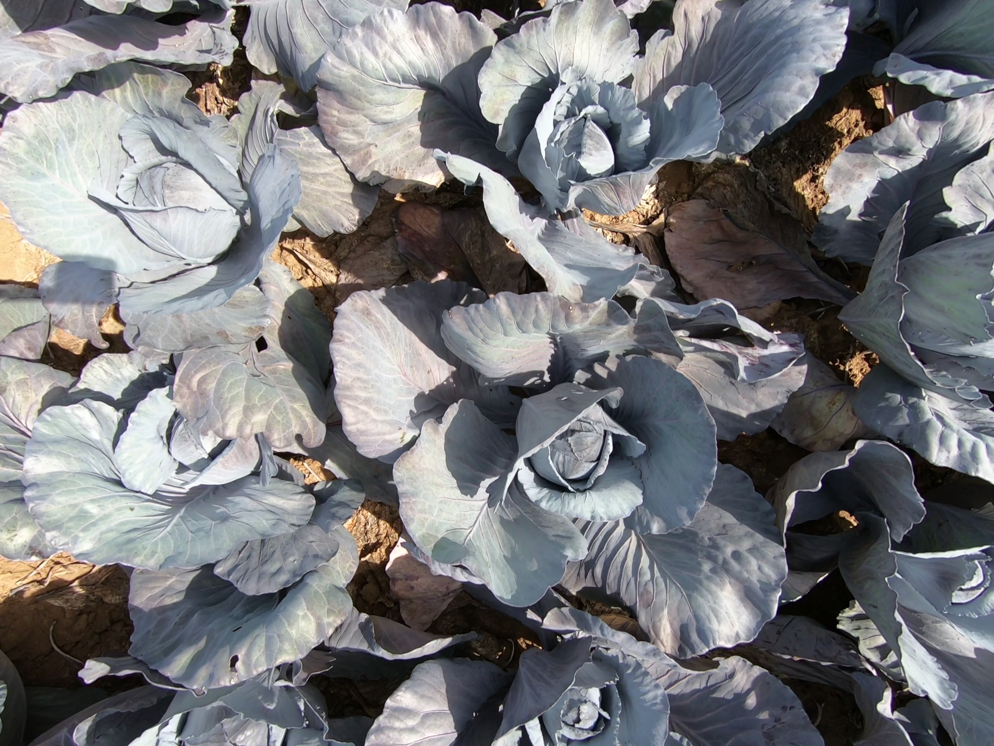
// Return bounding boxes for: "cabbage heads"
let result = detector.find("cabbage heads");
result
[182,657,300,743]
[527,396,613,480]
[550,120,615,188]
[131,159,240,257]
[911,254,991,355]
[548,675,603,739]
[895,541,987,609]
[168,398,256,474]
